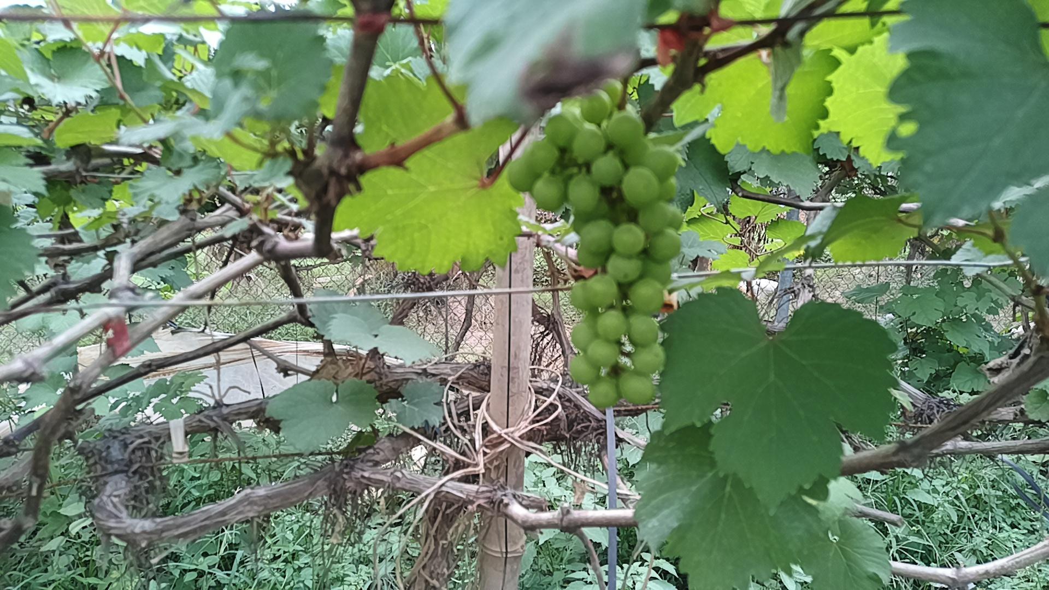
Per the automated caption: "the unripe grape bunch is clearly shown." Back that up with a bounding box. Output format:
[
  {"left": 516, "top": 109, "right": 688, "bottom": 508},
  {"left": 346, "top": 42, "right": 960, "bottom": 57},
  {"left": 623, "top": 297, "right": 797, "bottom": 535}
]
[{"left": 509, "top": 76, "right": 683, "bottom": 408}]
